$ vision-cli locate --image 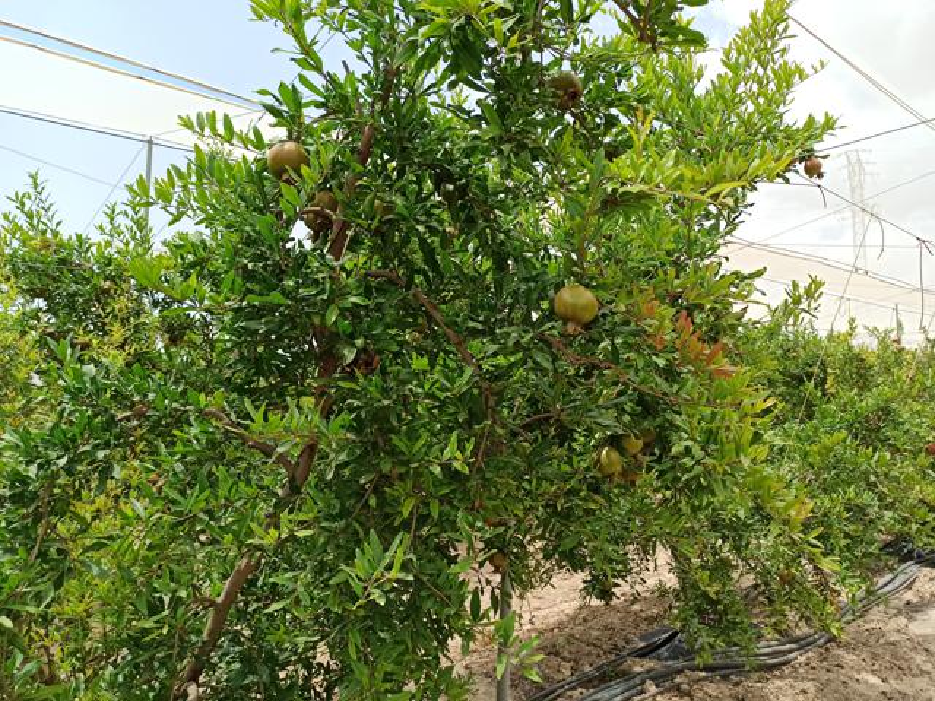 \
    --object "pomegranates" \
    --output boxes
[266,140,310,185]
[595,444,622,485]
[804,158,824,180]
[621,435,644,466]
[641,432,656,448]
[302,190,337,234]
[488,552,505,574]
[621,472,638,488]
[777,570,792,584]
[926,443,935,456]
[554,283,599,337]
[546,69,581,110]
